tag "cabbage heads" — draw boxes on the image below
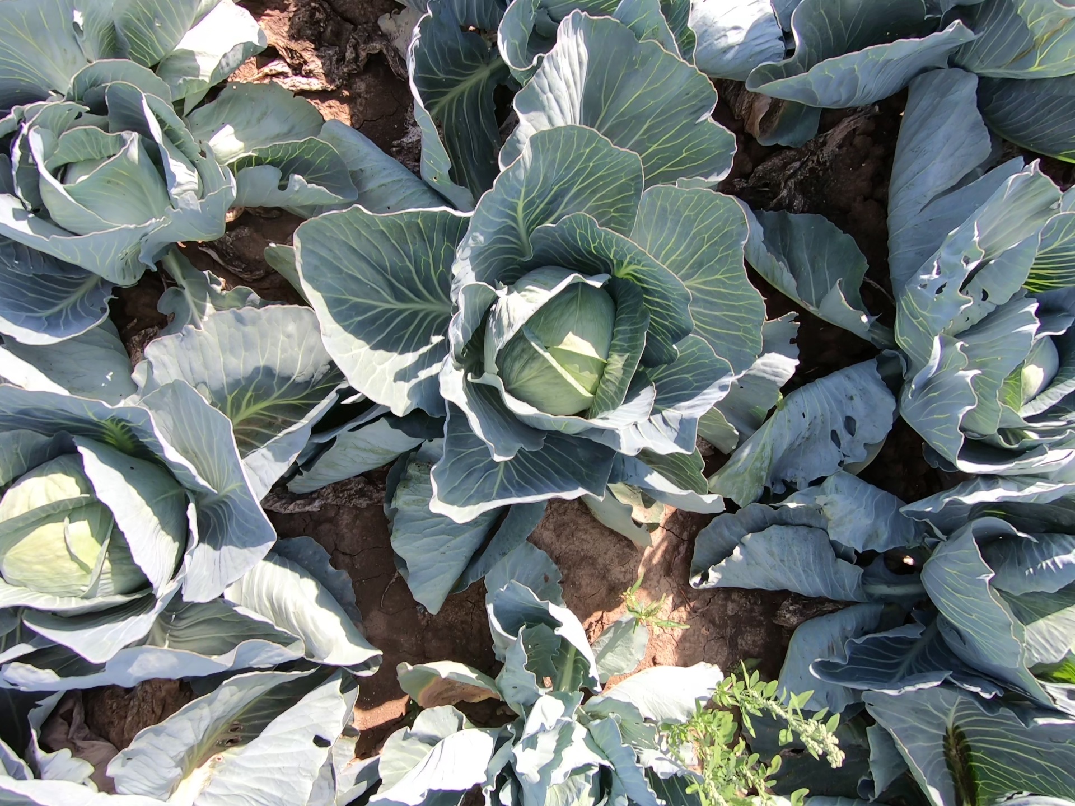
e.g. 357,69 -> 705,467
56,146 -> 151,239
0,453 -> 177,603
965,574 -> 1074,675
523,741 -> 602,805
489,279 -> 619,419
963,322 -> 1059,414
